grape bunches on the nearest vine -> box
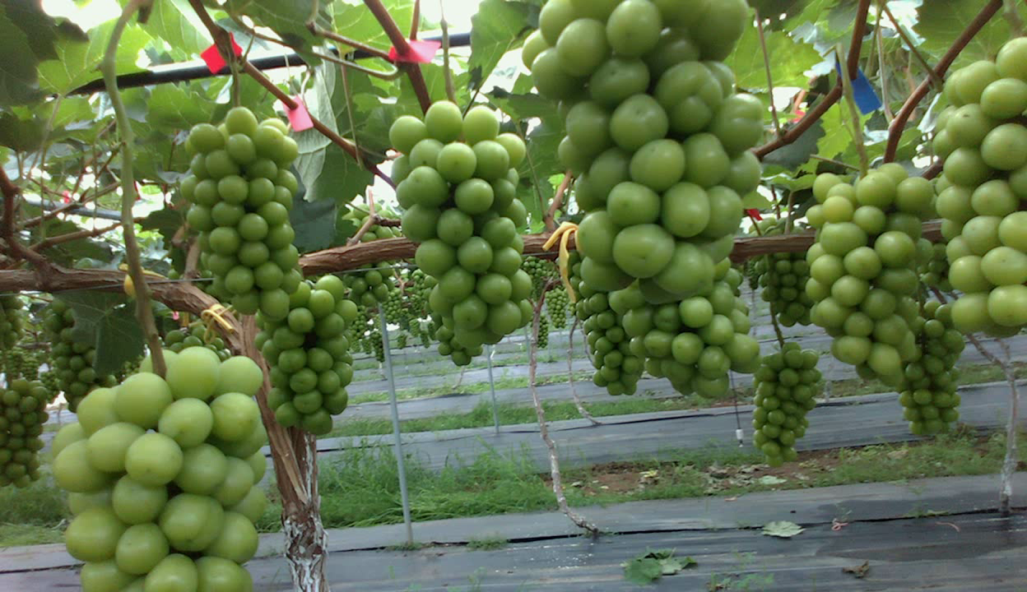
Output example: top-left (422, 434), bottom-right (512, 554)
top-left (253, 275), bottom-right (355, 434)
top-left (523, 0), bottom-right (764, 303)
top-left (181, 107), bottom-right (300, 322)
top-left (609, 260), bottom-right (761, 399)
top-left (52, 345), bottom-right (268, 591)
top-left (390, 100), bottom-right (534, 349)
top-left (805, 162), bottom-right (932, 386)
top-left (932, 37), bottom-right (1026, 338)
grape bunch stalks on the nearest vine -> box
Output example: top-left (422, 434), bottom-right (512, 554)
top-left (1002, 0), bottom-right (1022, 37)
top-left (834, 45), bottom-right (867, 178)
top-left (93, 9), bottom-right (167, 377)
top-left (440, 19), bottom-right (457, 102)
top-left (224, 32), bottom-right (240, 105)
